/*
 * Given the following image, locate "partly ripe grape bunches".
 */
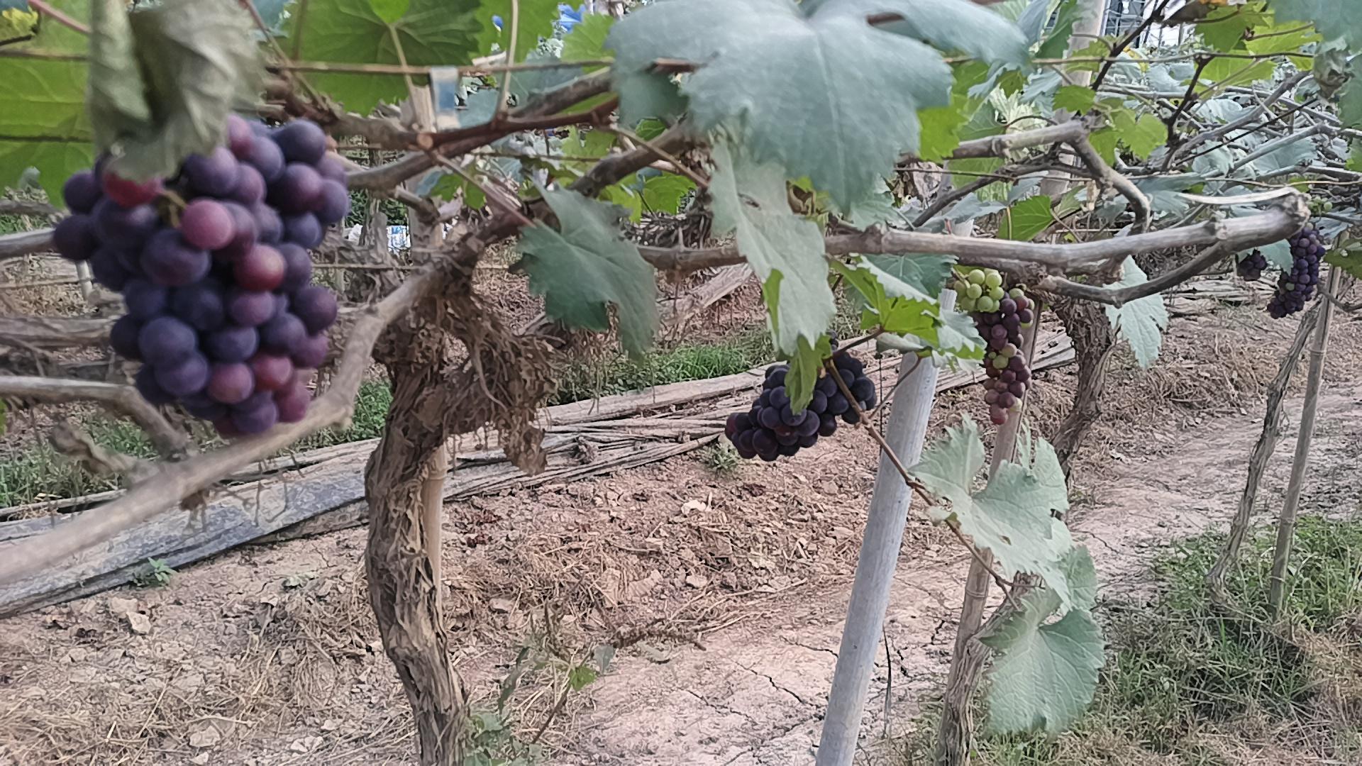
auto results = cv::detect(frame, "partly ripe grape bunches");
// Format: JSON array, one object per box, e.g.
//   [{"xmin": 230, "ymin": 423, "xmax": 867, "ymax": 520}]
[
  {"xmin": 1266, "ymin": 226, "xmax": 1326, "ymax": 318},
  {"xmin": 946, "ymin": 267, "xmax": 1036, "ymax": 425},
  {"xmin": 1235, "ymin": 248, "xmax": 1270, "ymax": 282}
]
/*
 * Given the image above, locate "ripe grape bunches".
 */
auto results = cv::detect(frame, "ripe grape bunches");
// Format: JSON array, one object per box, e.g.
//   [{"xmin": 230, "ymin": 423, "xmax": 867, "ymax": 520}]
[
  {"xmin": 54, "ymin": 115, "xmax": 348, "ymax": 437},
  {"xmin": 725, "ymin": 347, "xmax": 877, "ymax": 461}
]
